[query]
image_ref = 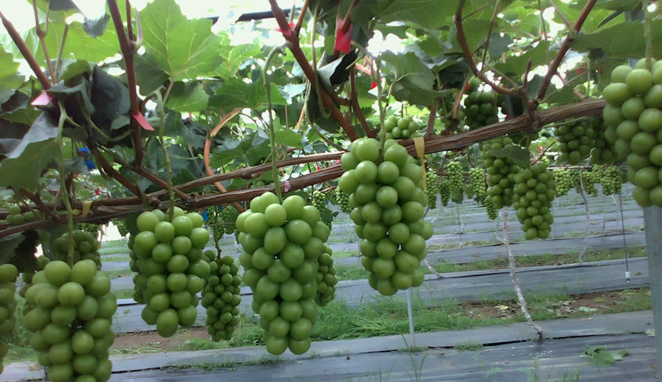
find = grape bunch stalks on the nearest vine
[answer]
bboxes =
[144,90,175,220]
[641,1,652,70]
[347,43,386,160]
[263,44,286,204]
[56,102,79,266]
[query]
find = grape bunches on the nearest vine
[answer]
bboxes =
[135,207,211,339]
[235,193,330,357]
[600,58,661,208]
[337,138,434,296]
[22,260,118,381]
